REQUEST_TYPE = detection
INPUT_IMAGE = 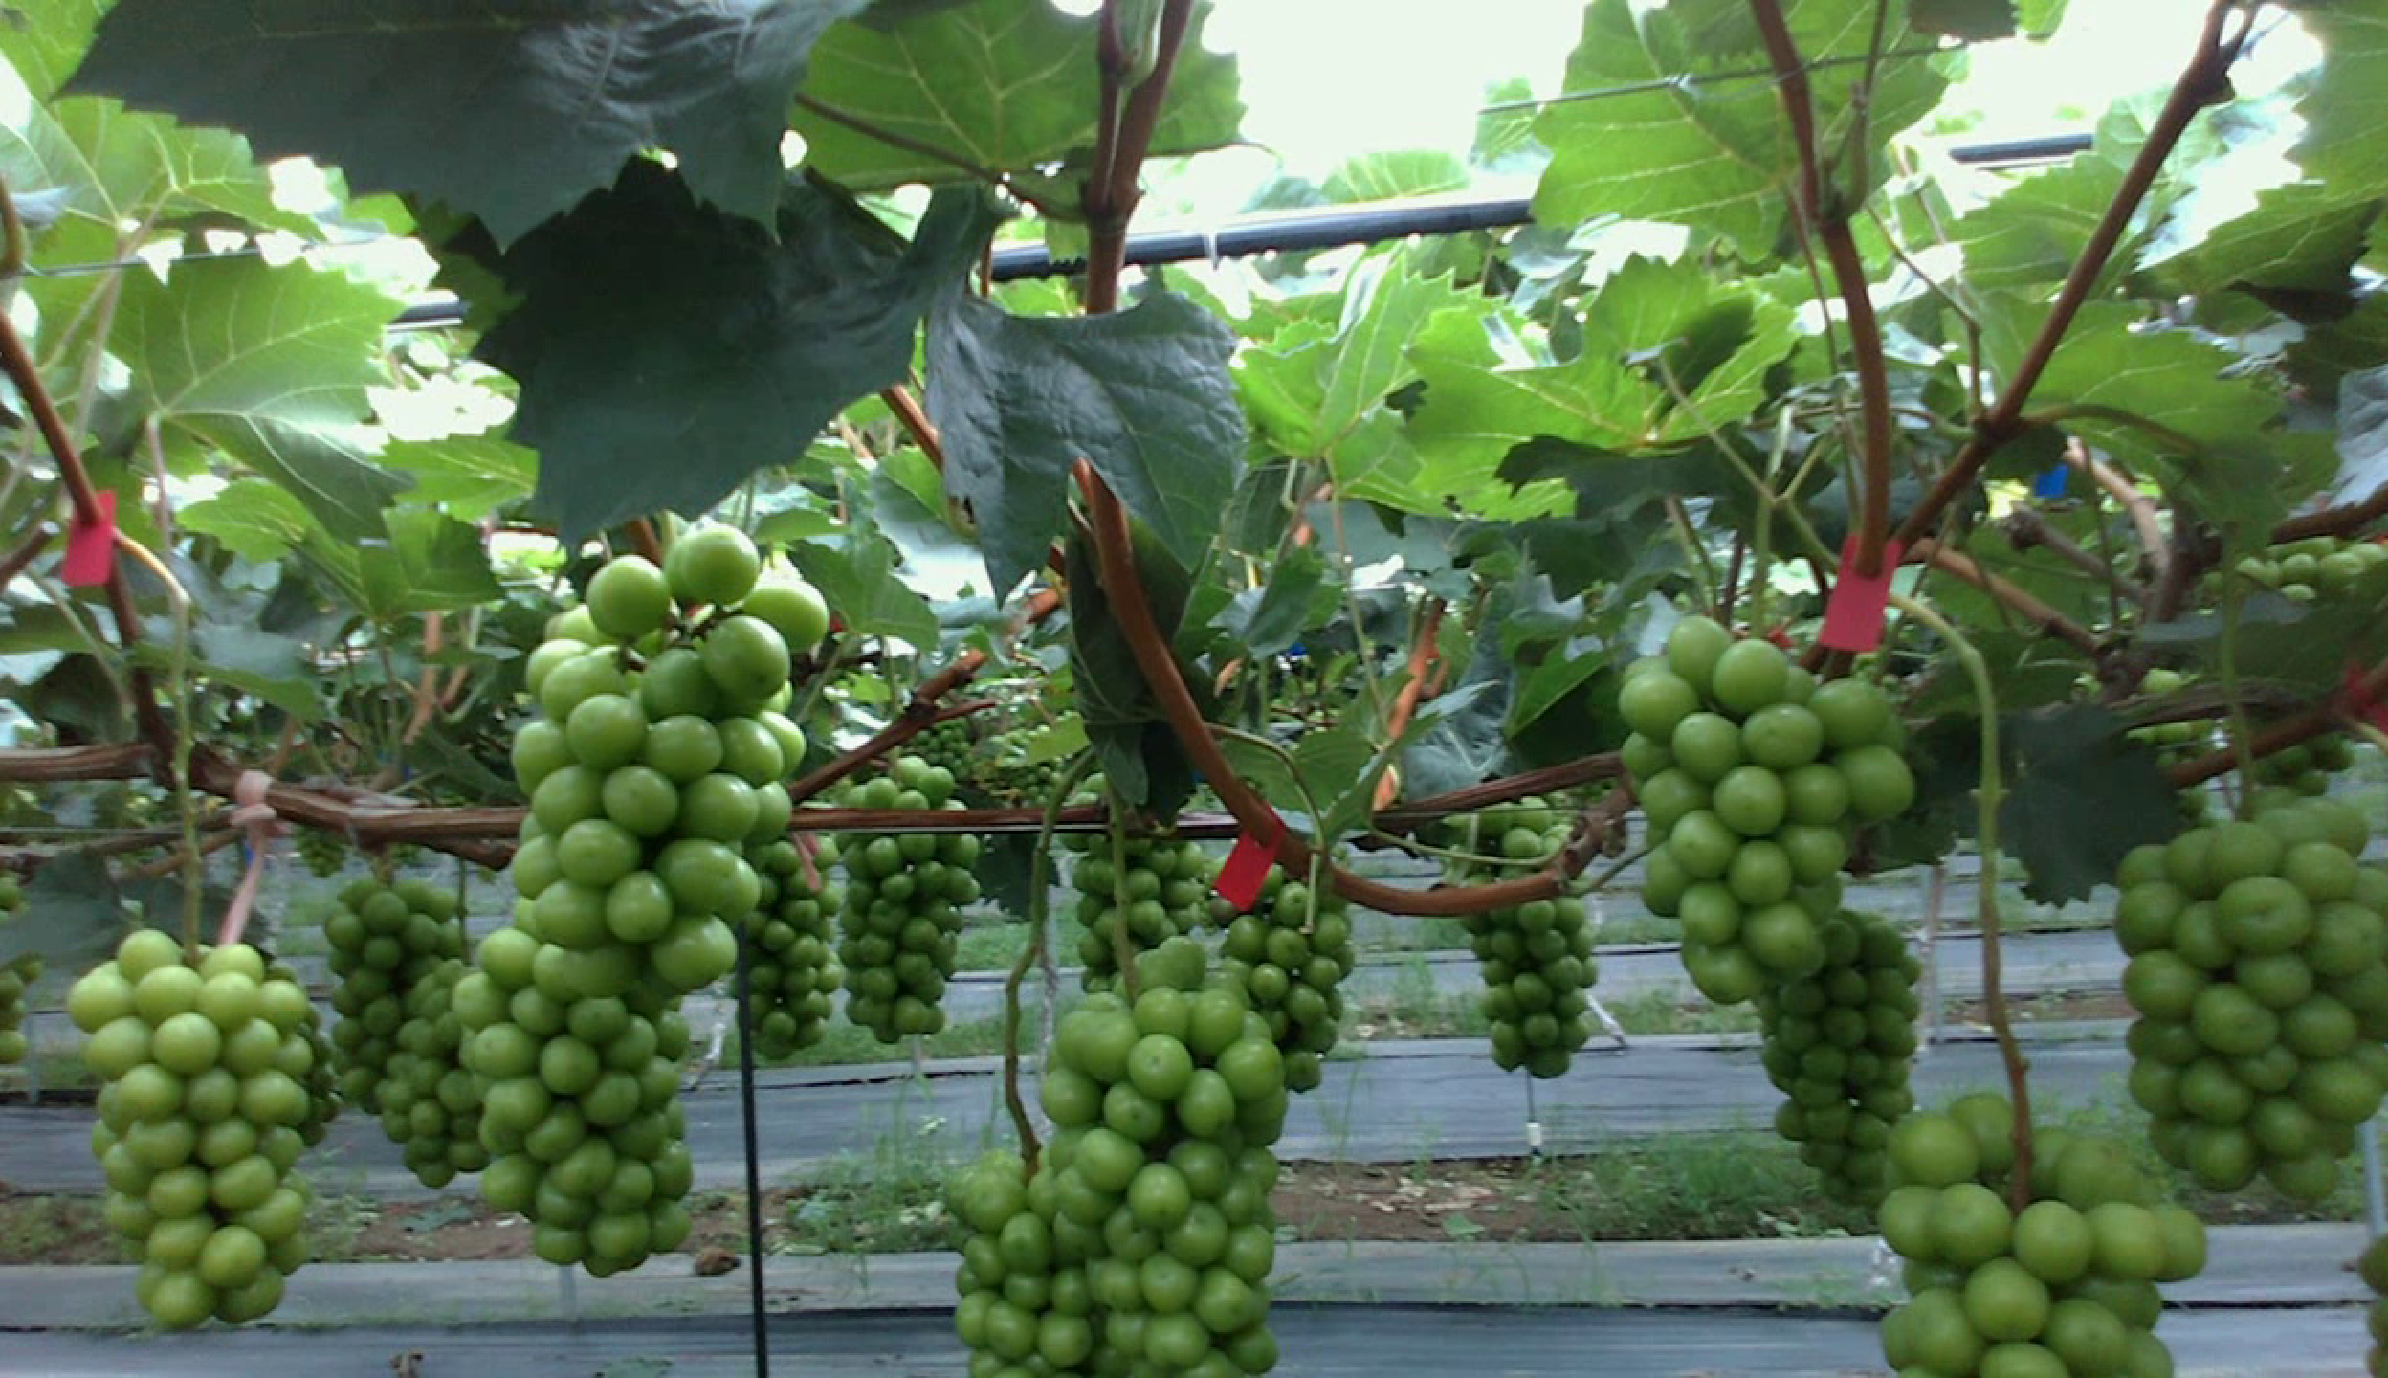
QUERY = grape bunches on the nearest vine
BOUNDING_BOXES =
[65,928,314,1334]
[452,896,693,1280]
[1615,616,1917,1009]
[2109,785,2386,1200]
[1877,1089,2206,1376]
[941,1148,1125,1376]
[1039,938,1290,1376]
[507,522,830,997]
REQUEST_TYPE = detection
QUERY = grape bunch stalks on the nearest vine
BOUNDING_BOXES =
[1749,404,1799,639]
[1889,591,2032,1213]
[658,509,675,559]
[109,528,199,972]
[1001,729,1112,1179]
[2218,524,2258,819]
[1102,767,1139,1009]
